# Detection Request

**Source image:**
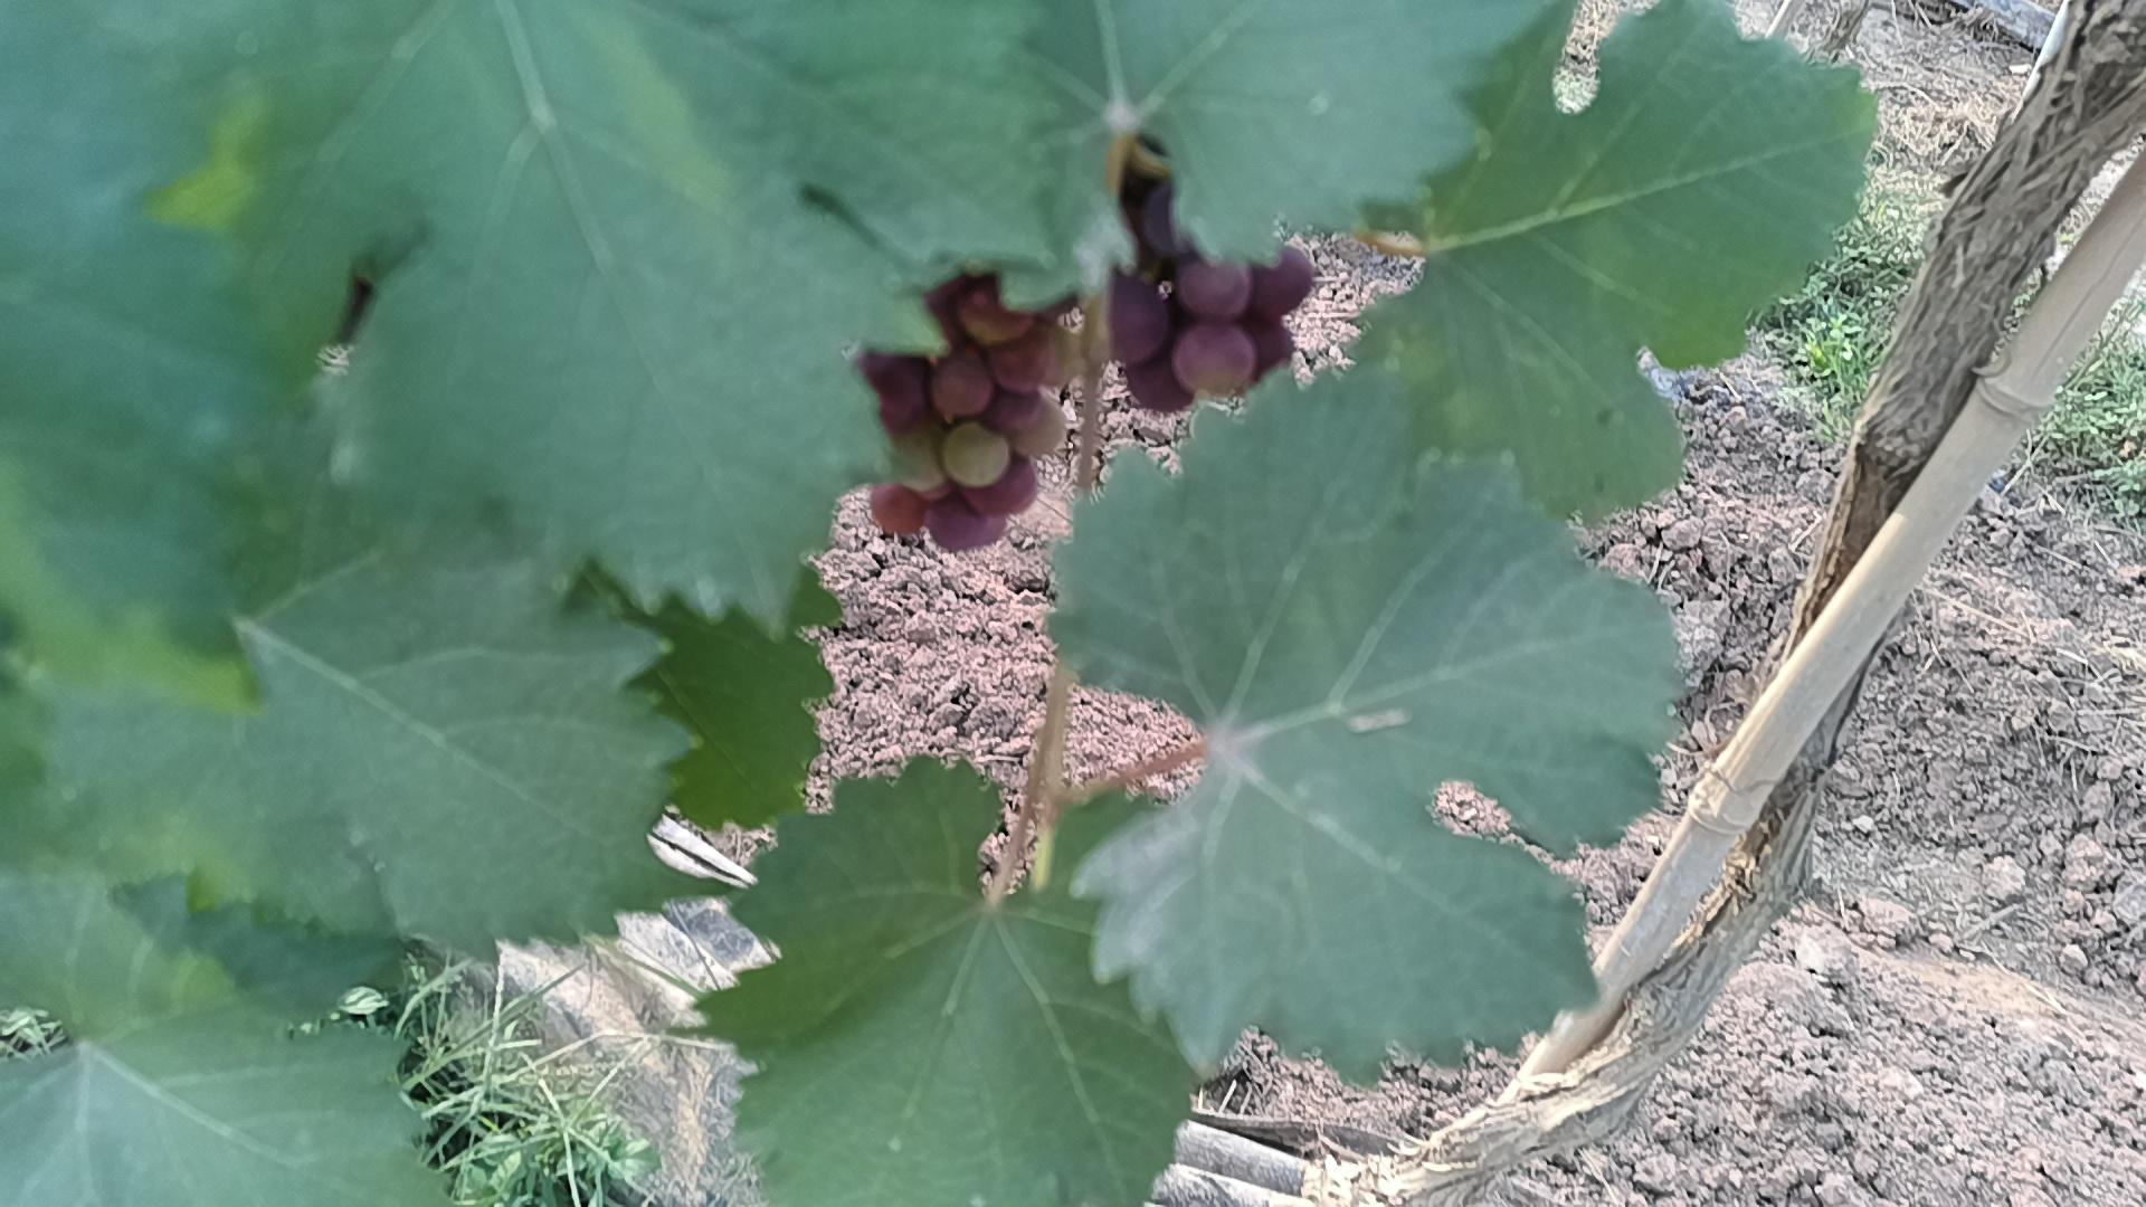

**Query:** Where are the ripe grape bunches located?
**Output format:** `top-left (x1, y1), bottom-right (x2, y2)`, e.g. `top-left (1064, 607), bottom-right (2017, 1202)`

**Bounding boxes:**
top-left (1110, 136), bottom-right (1314, 411)
top-left (855, 274), bottom-right (1077, 550)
